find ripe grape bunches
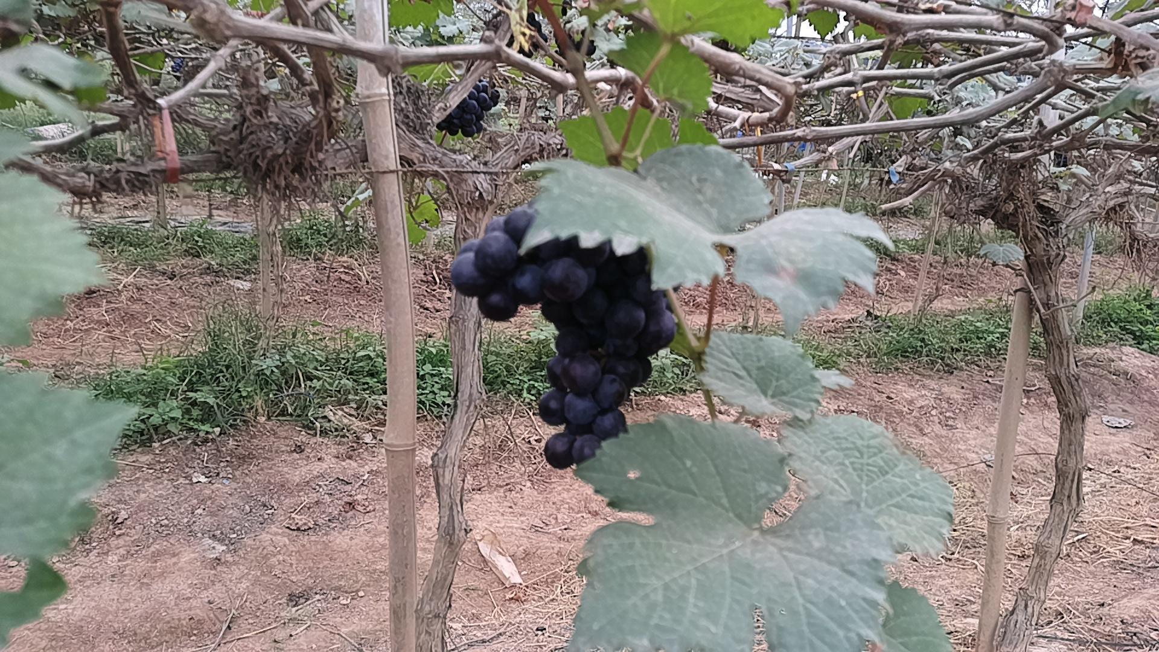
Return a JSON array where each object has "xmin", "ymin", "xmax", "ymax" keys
[
  {"xmin": 451, "ymin": 206, "xmax": 677, "ymax": 468},
  {"xmin": 552, "ymin": 31, "xmax": 597, "ymax": 72},
  {"xmin": 507, "ymin": 10, "xmax": 549, "ymax": 58},
  {"xmin": 435, "ymin": 78, "xmax": 502, "ymax": 137}
]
